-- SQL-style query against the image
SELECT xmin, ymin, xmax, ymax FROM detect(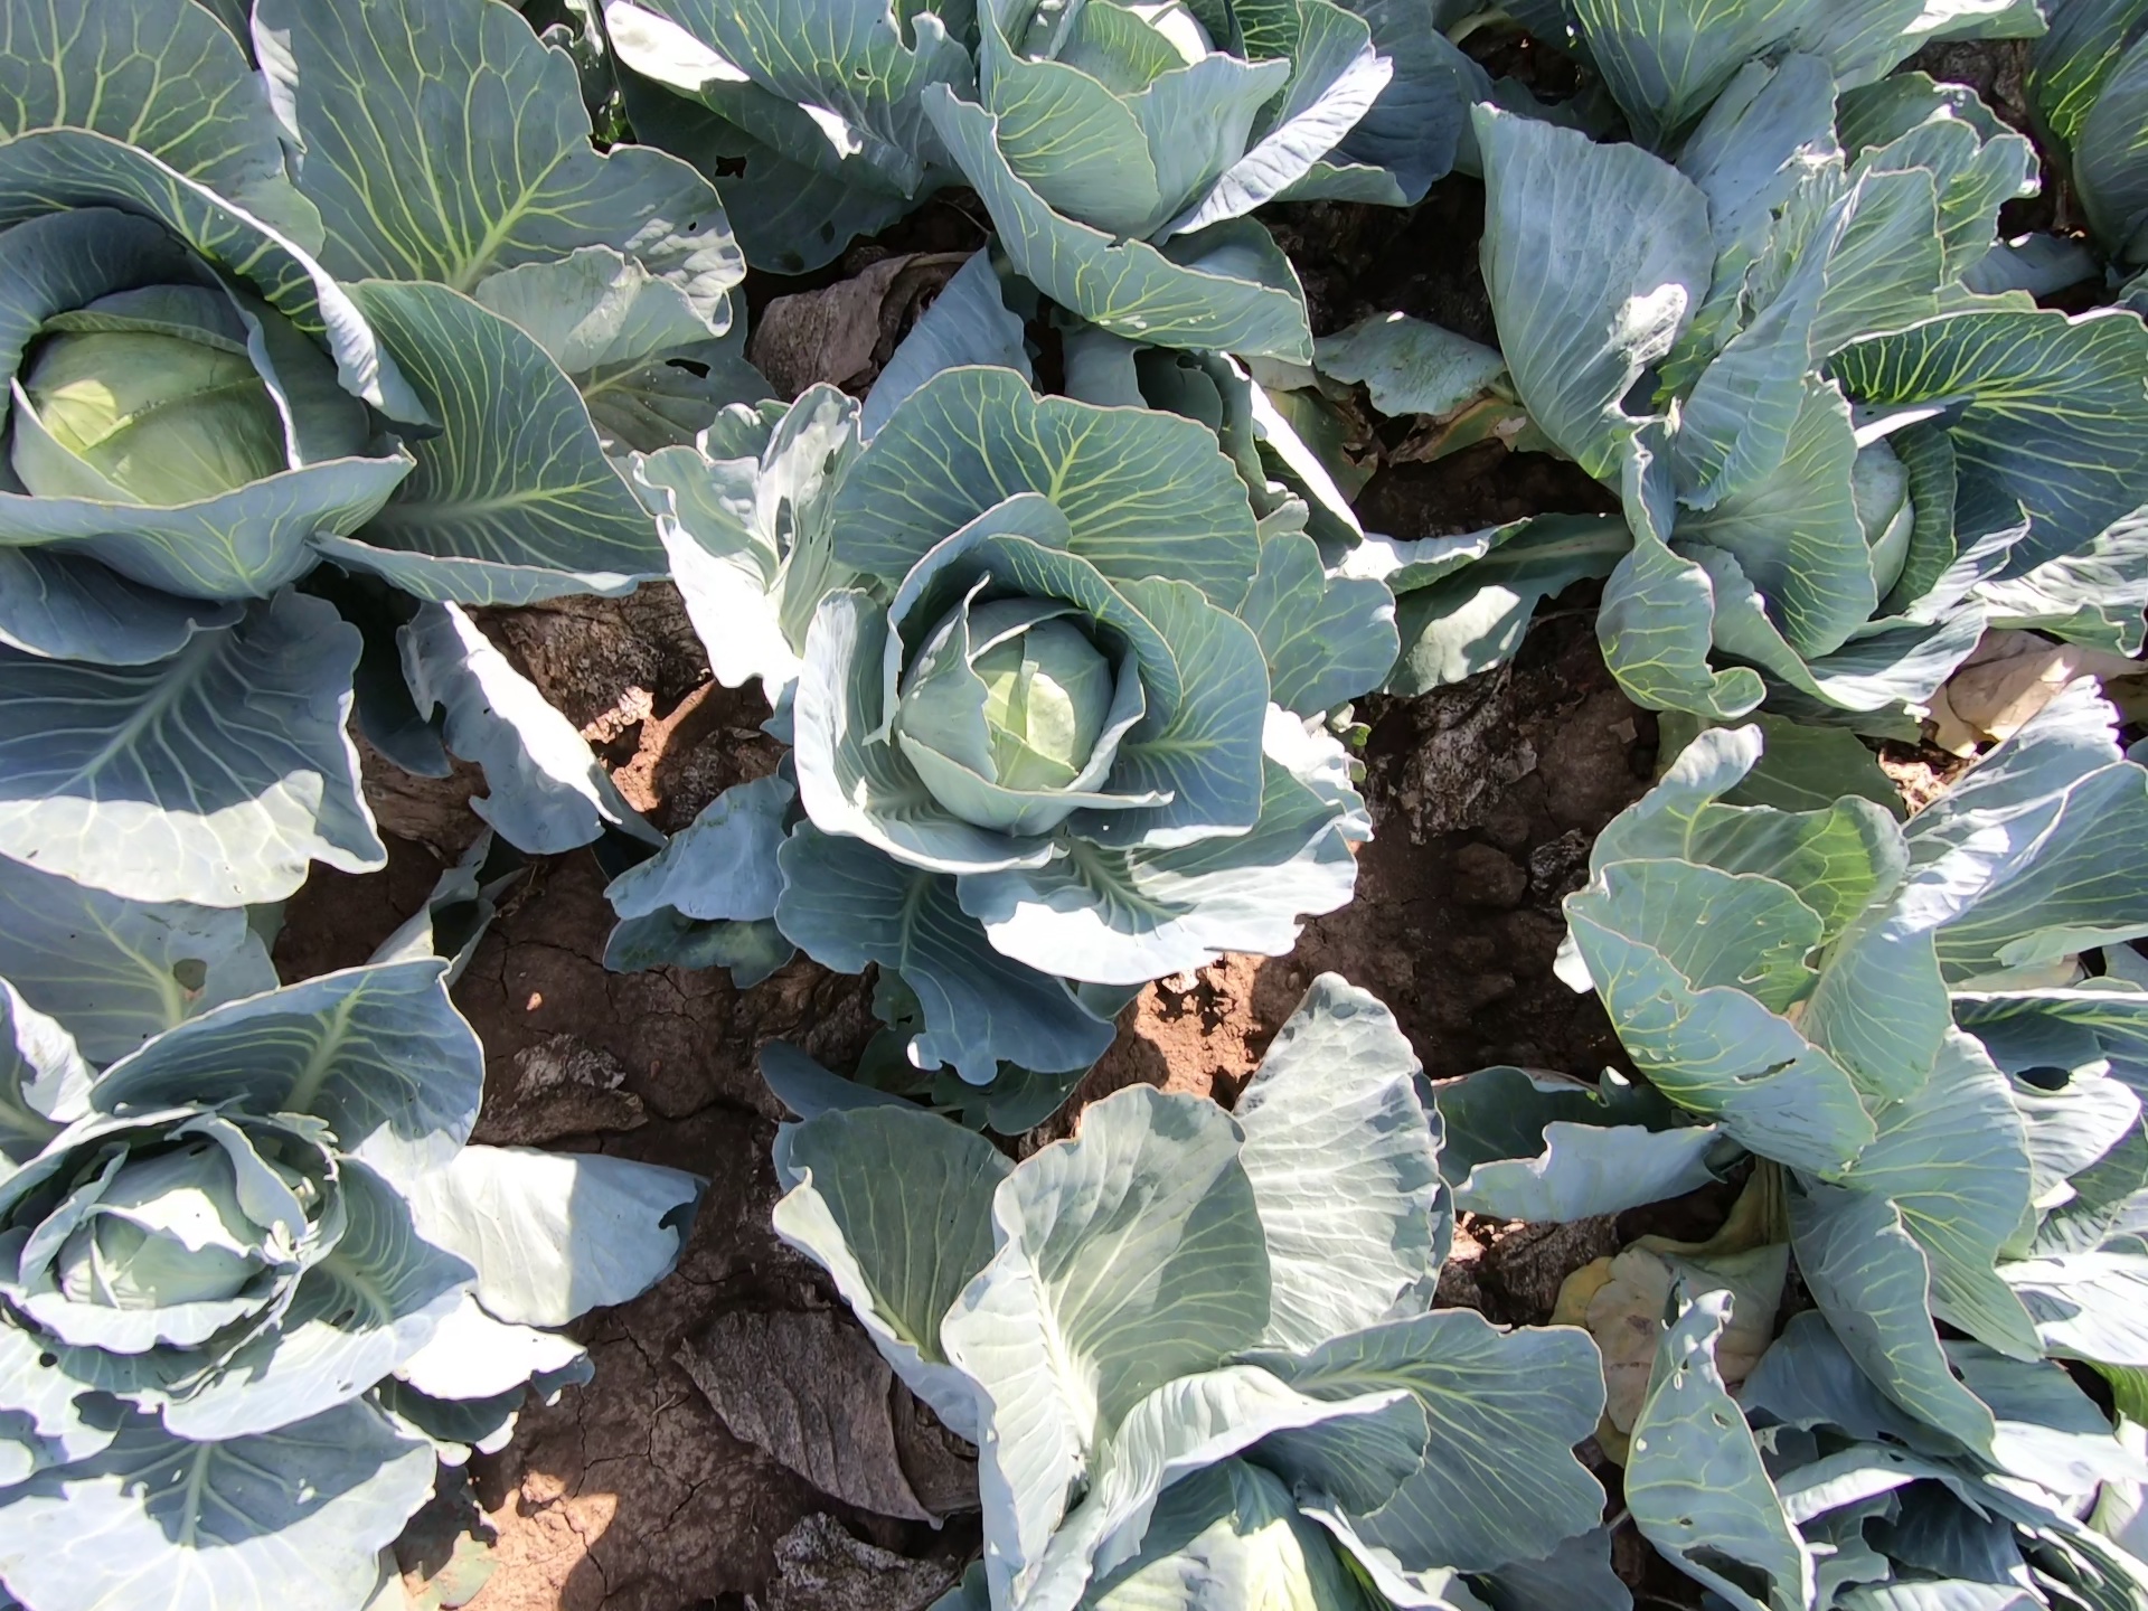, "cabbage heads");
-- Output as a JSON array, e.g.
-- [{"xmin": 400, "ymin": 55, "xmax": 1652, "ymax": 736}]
[
  {"xmin": 1025, "ymin": 3, "xmax": 1233, "ymax": 209},
  {"xmin": 1705, "ymin": 417, "xmax": 1911, "ymax": 628},
  {"xmin": 59, "ymin": 1147, "xmax": 291, "ymax": 1320},
  {"xmin": 1059, "ymin": 1459, "xmax": 1353, "ymax": 1608},
  {"xmin": 1860, "ymin": 1364, "xmax": 2101, "ymax": 1570},
  {"xmin": 3, "ymin": 285, "xmax": 355, "ymax": 573},
  {"xmin": 902, "ymin": 607, "xmax": 1121, "ymax": 821}
]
